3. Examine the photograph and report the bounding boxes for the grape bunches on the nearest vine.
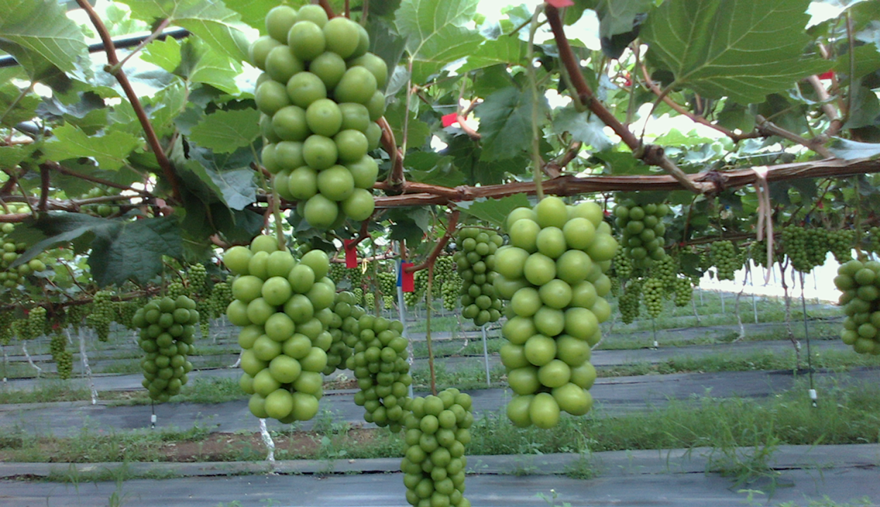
[494,198,618,429]
[221,234,335,423]
[252,4,388,230]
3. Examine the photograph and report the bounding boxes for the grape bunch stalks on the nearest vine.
[527,1,546,201]
[271,174,285,251]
